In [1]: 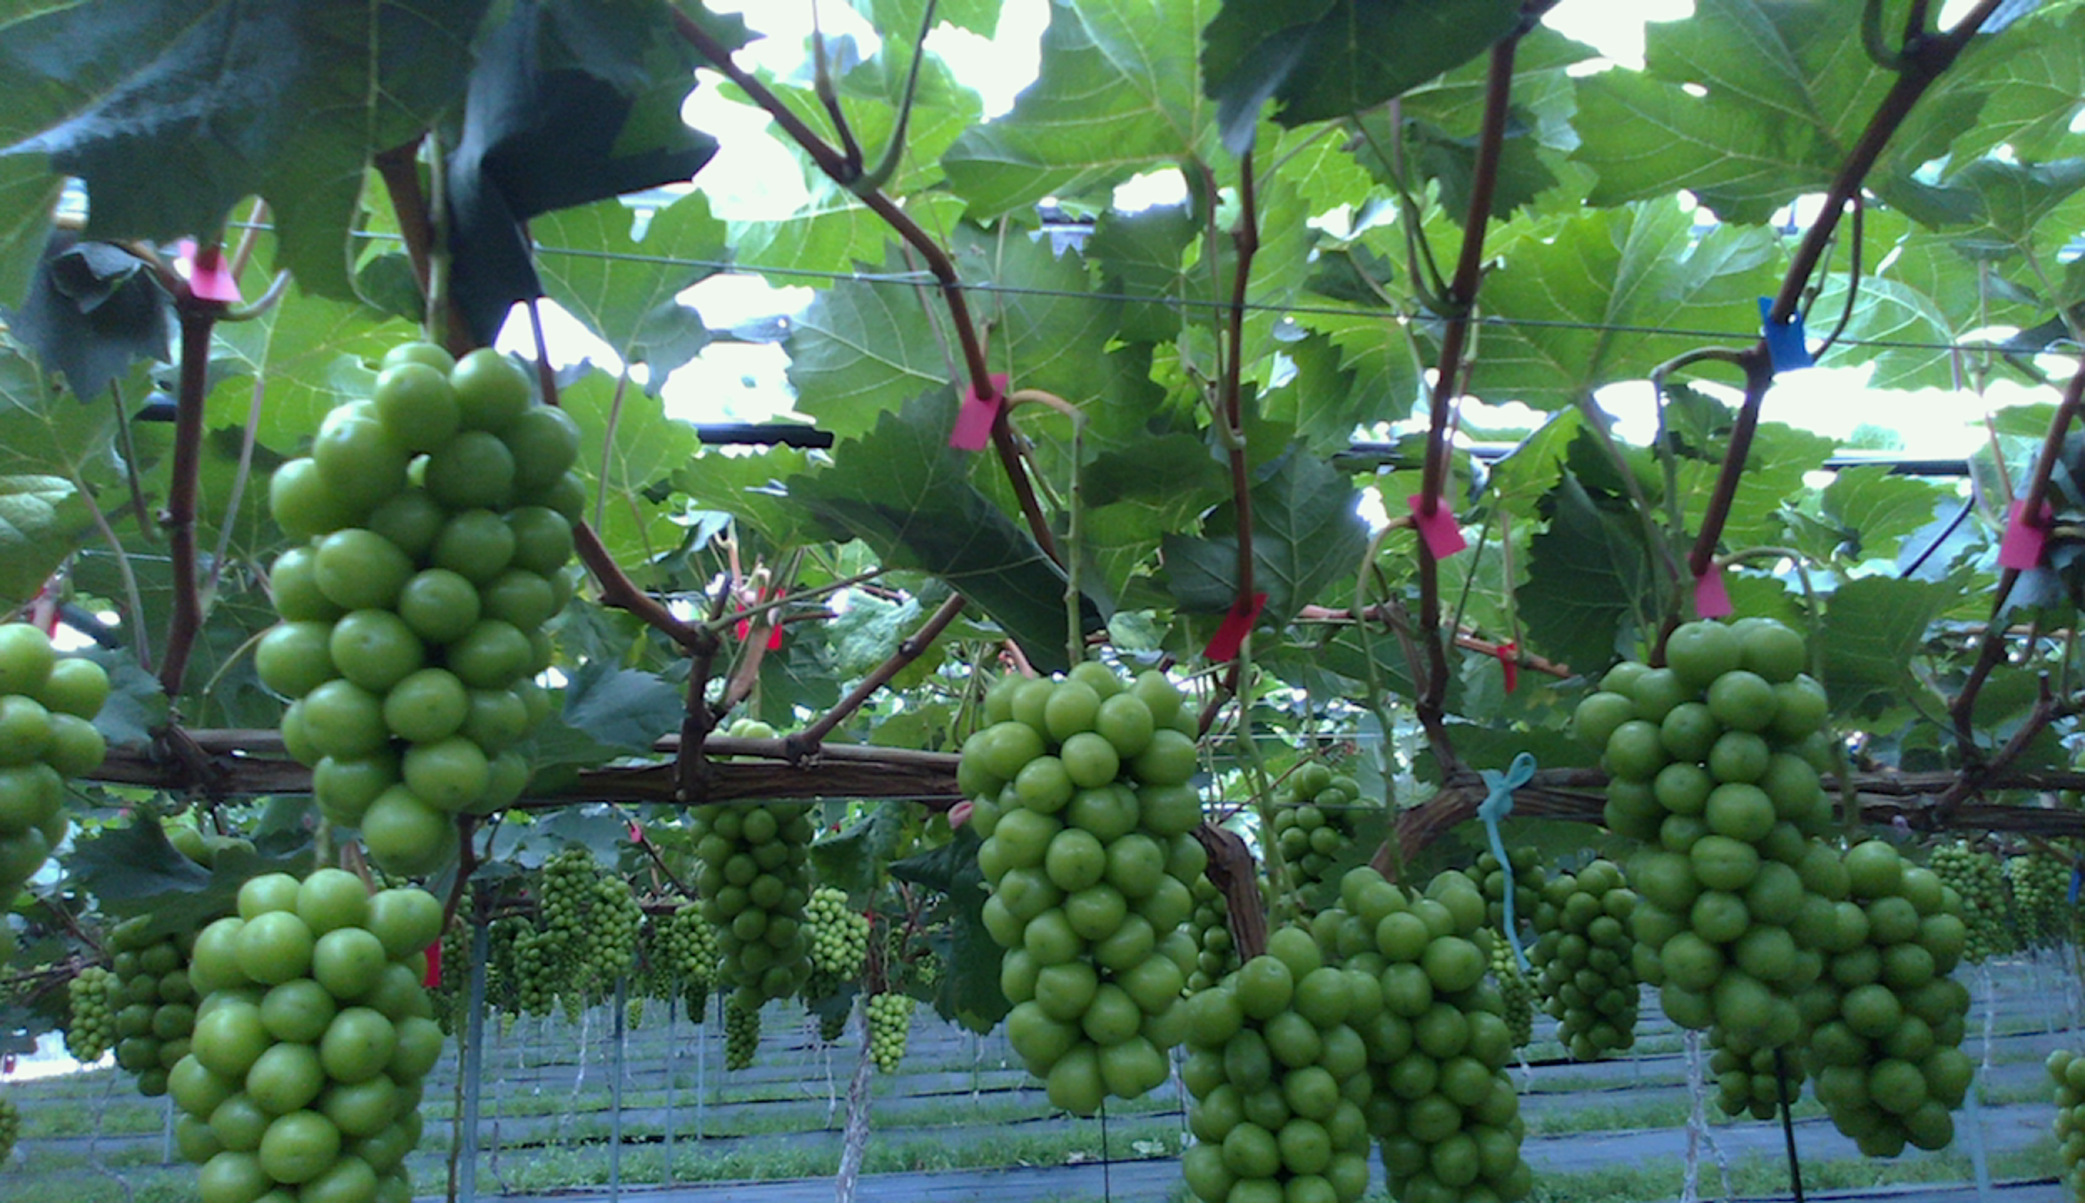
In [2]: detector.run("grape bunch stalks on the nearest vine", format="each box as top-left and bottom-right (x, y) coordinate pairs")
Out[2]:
(1352, 515), (1413, 902)
(424, 129), (451, 346)
(1007, 389), (1086, 668)
(312, 817), (334, 871)
(1236, 635), (1281, 941)
(1716, 546), (1869, 845)
(1649, 346), (1754, 622)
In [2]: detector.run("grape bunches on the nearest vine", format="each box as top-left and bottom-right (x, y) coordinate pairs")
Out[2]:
(254, 341), (588, 877)
(167, 865), (444, 1201)
(1572, 617), (1843, 1051)
(1306, 864), (1534, 1201)
(1183, 927), (1382, 1201)
(1794, 840), (1975, 1158)
(956, 662), (1206, 1118)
